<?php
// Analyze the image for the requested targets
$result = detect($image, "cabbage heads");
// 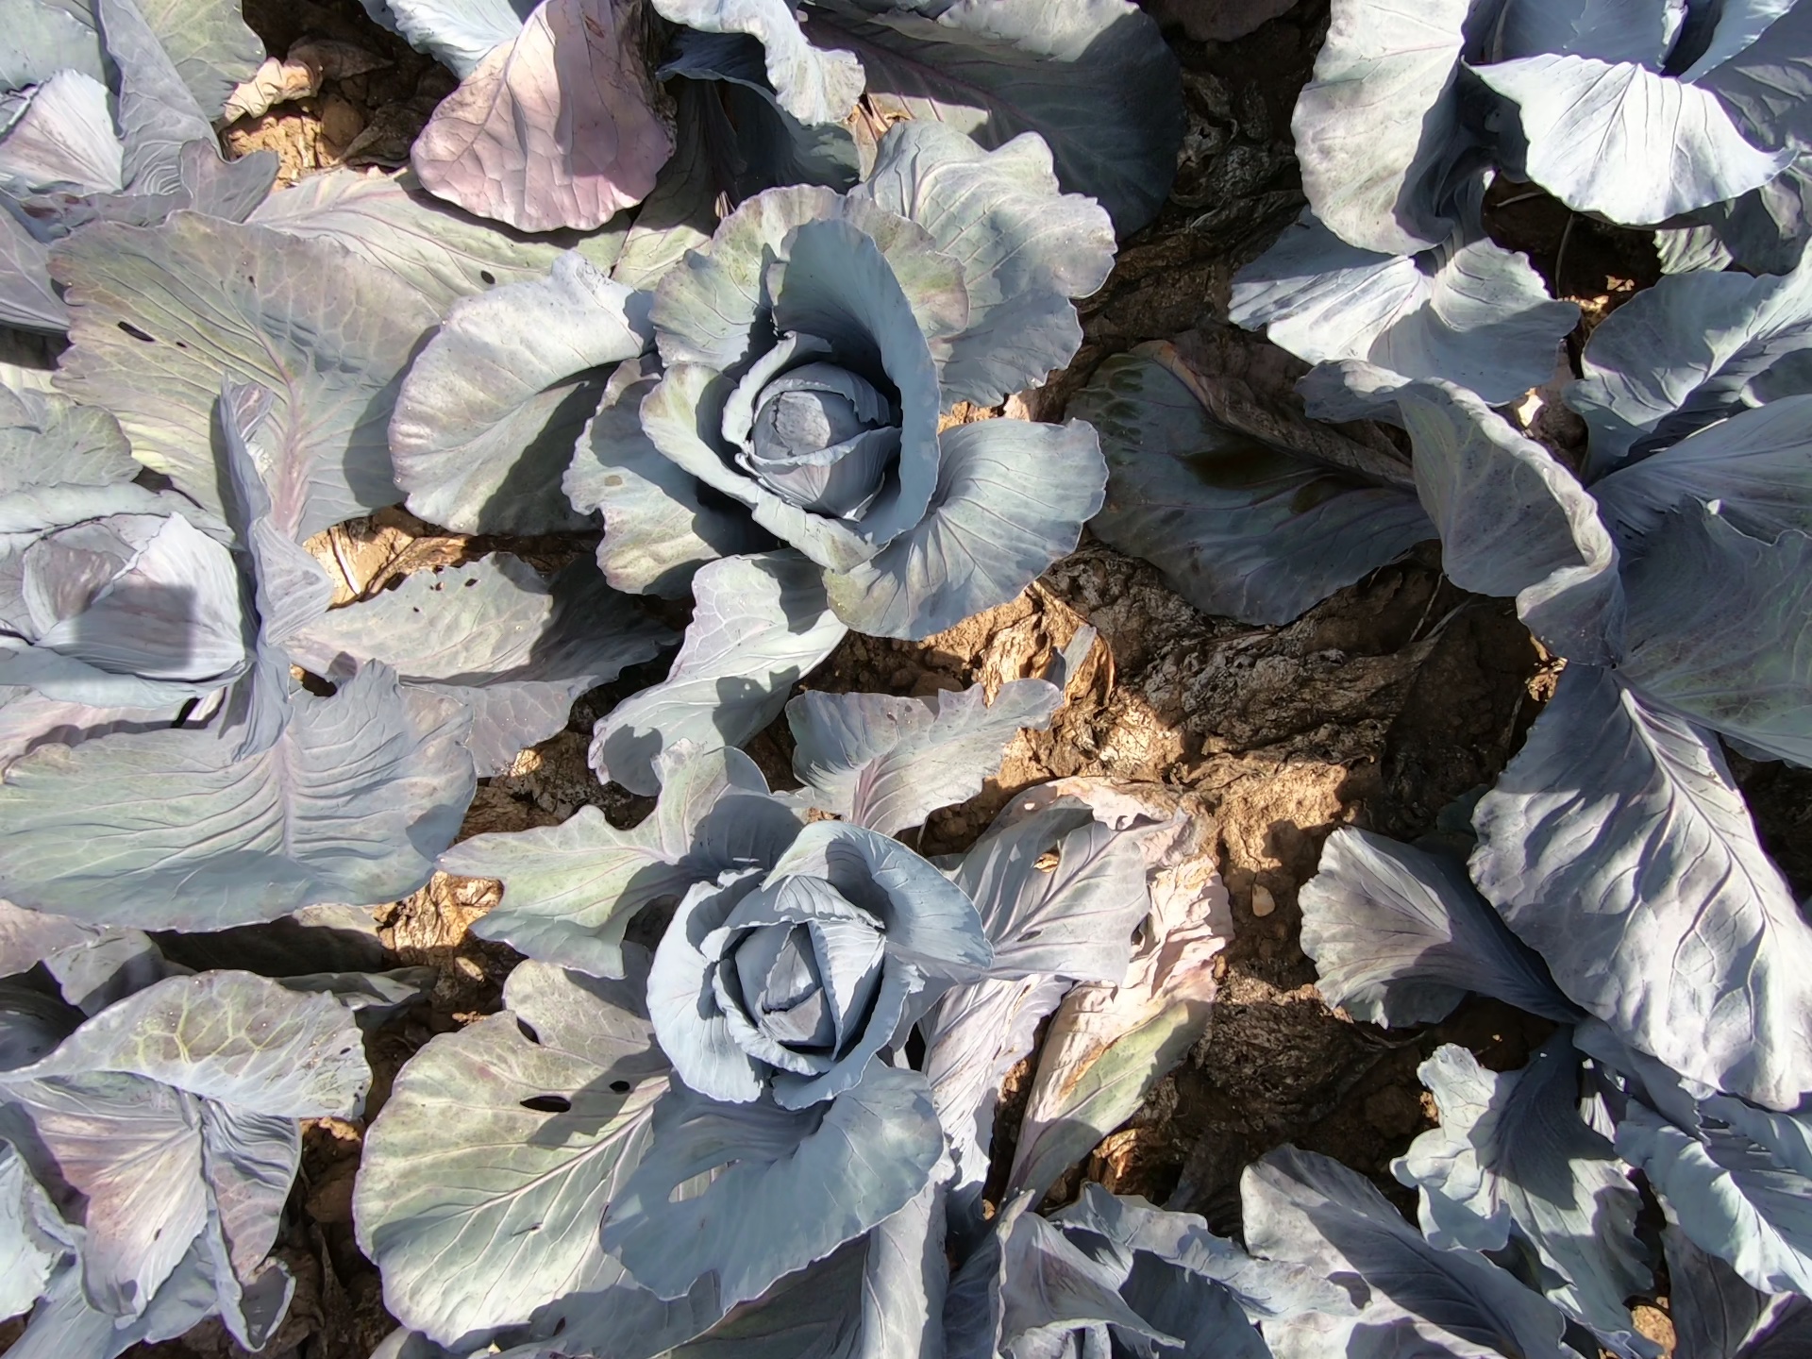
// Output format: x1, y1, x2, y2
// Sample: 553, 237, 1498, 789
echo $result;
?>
20, 512, 247, 684
974, 1234, 1112, 1357
1493, 2, 1689, 127
3, 80, 122, 206
22, 1096, 200, 1258
750, 364, 890, 509
734, 882, 882, 1050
